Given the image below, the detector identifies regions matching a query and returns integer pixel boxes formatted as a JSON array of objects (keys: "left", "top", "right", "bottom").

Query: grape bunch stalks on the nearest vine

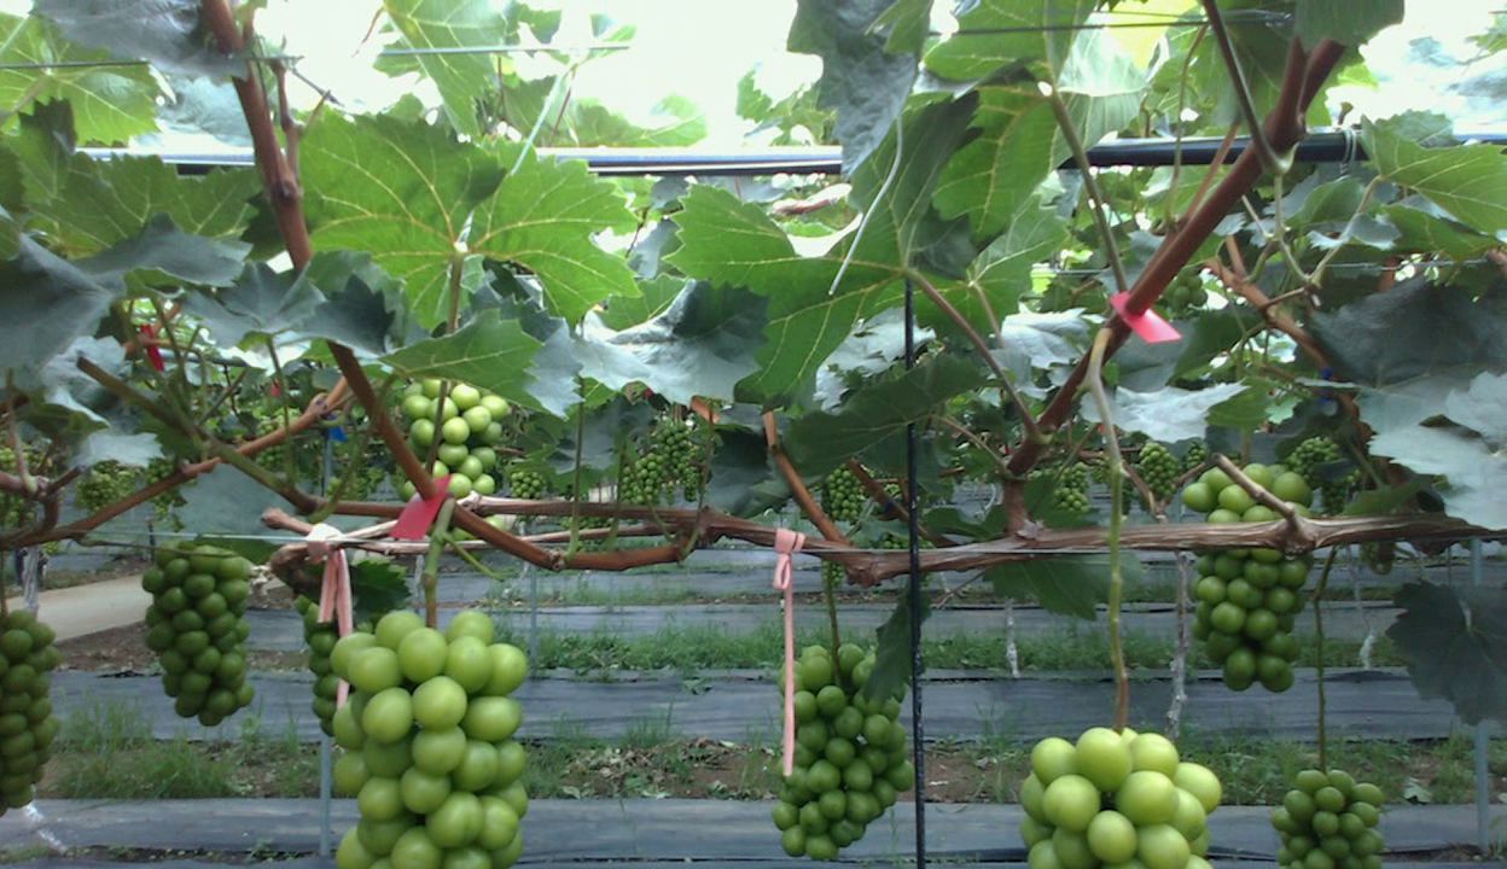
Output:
[
  {"left": 1086, "top": 326, "right": 1127, "bottom": 735},
  {"left": 420, "top": 500, "right": 454, "bottom": 628}
]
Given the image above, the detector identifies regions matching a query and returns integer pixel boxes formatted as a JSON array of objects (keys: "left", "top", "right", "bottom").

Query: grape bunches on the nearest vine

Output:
[
  {"left": 1018, "top": 725, "right": 1221, "bottom": 868},
  {"left": 330, "top": 610, "right": 529, "bottom": 868}
]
